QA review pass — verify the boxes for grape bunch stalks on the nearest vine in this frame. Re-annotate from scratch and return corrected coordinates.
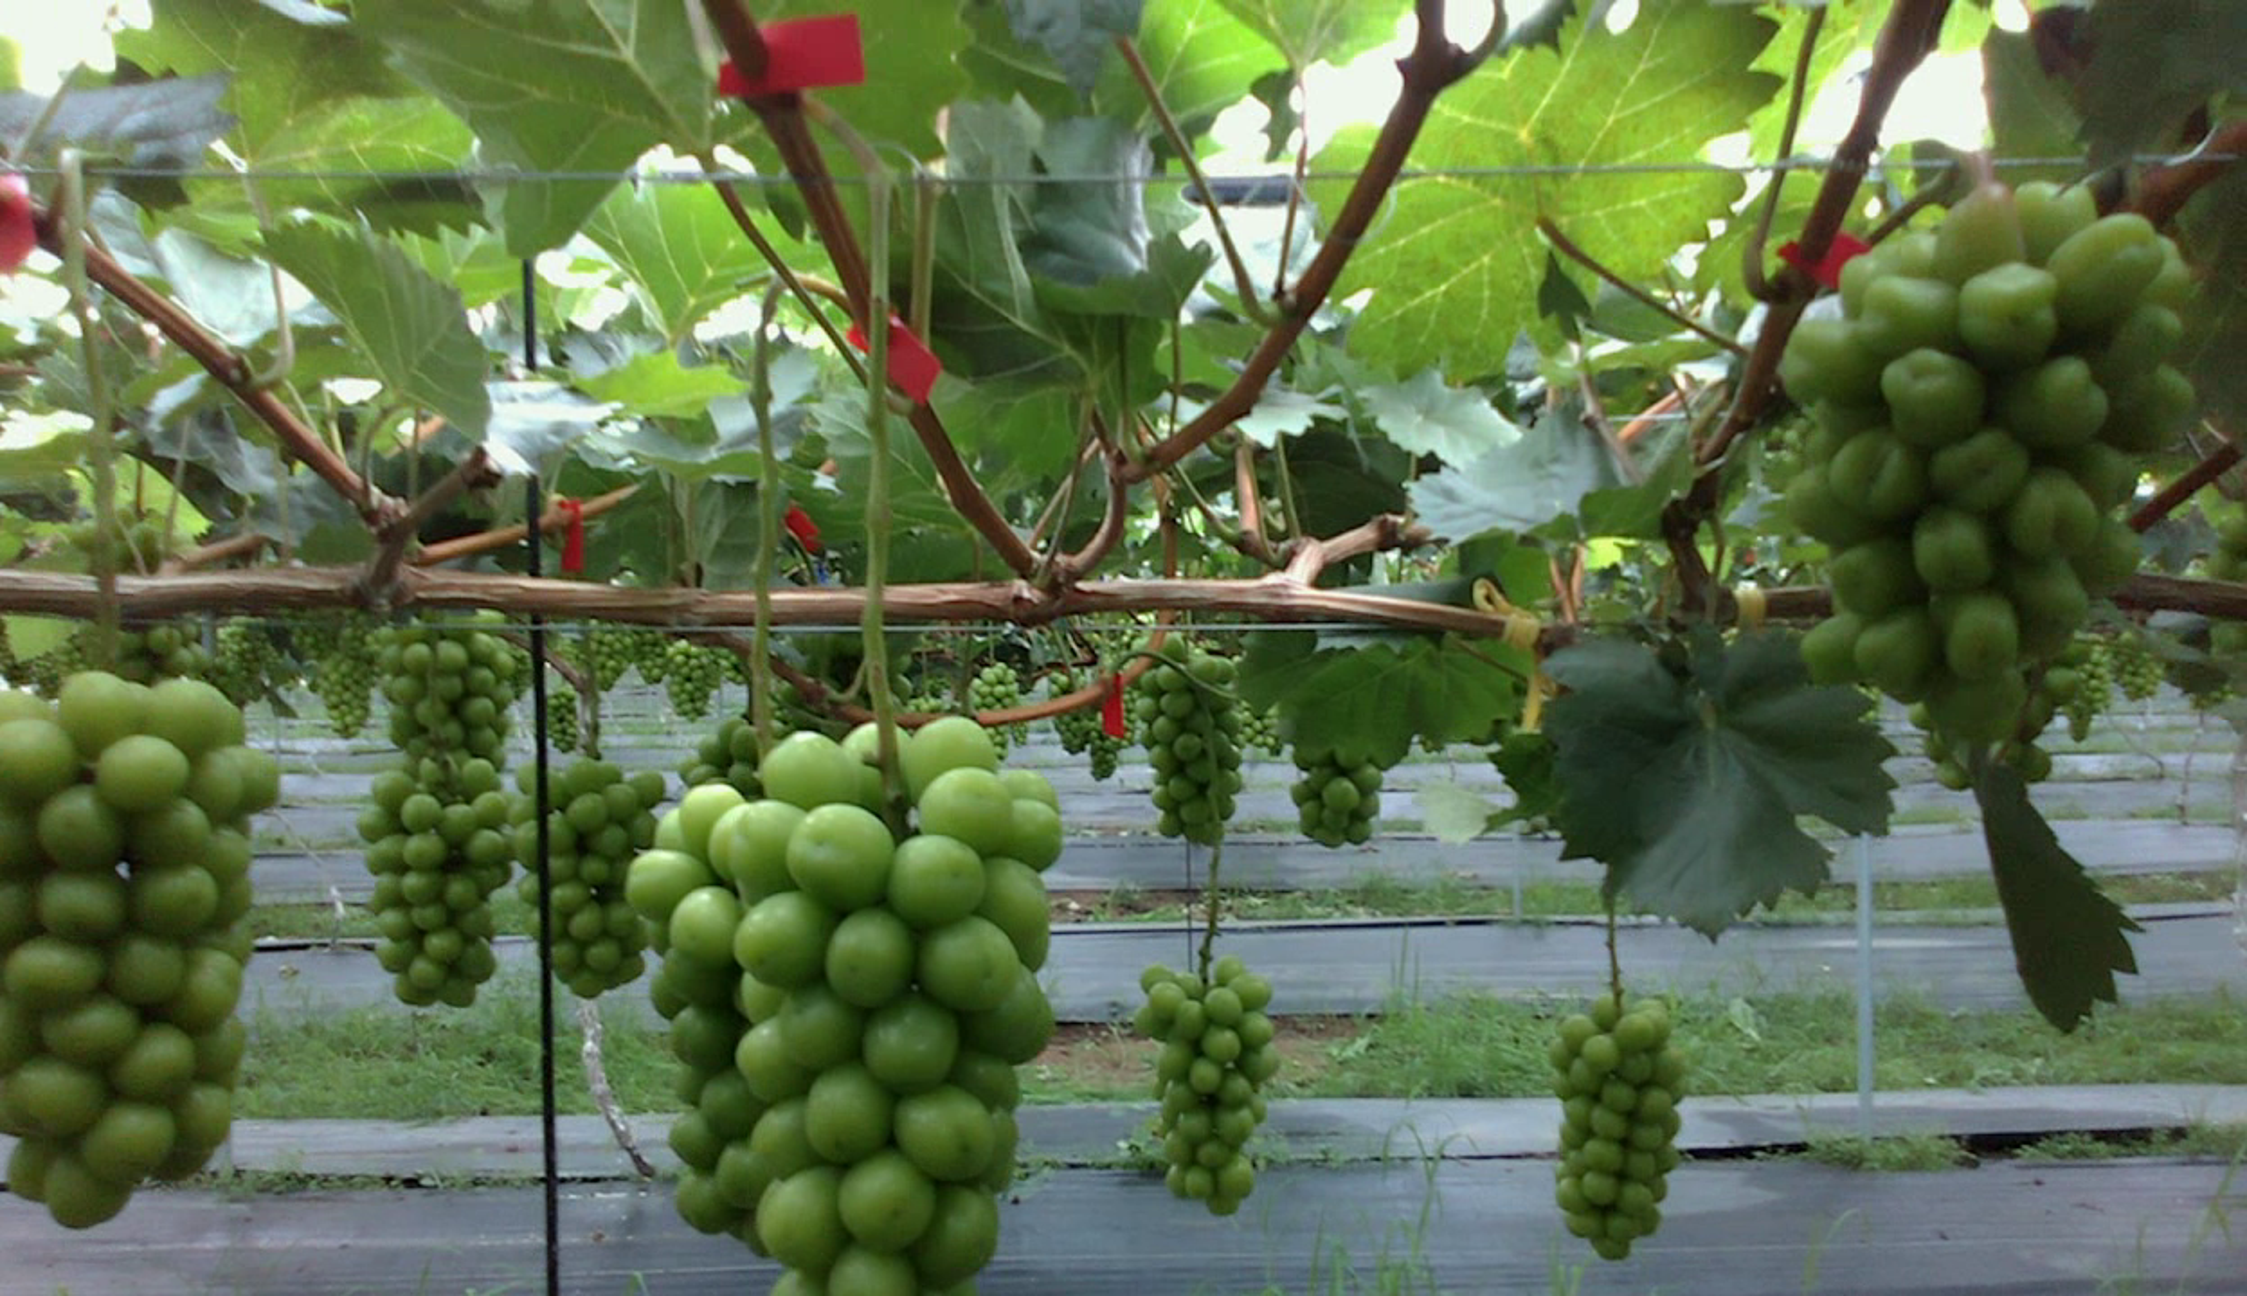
[816,115,913,842]
[1961,146,1993,187]
[59,149,119,670]
[744,274,783,756]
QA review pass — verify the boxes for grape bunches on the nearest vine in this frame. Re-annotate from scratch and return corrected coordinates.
[1779,182,2198,733]
[0,666,283,1233]
[726,715,1064,1294]
[627,785,765,1249]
